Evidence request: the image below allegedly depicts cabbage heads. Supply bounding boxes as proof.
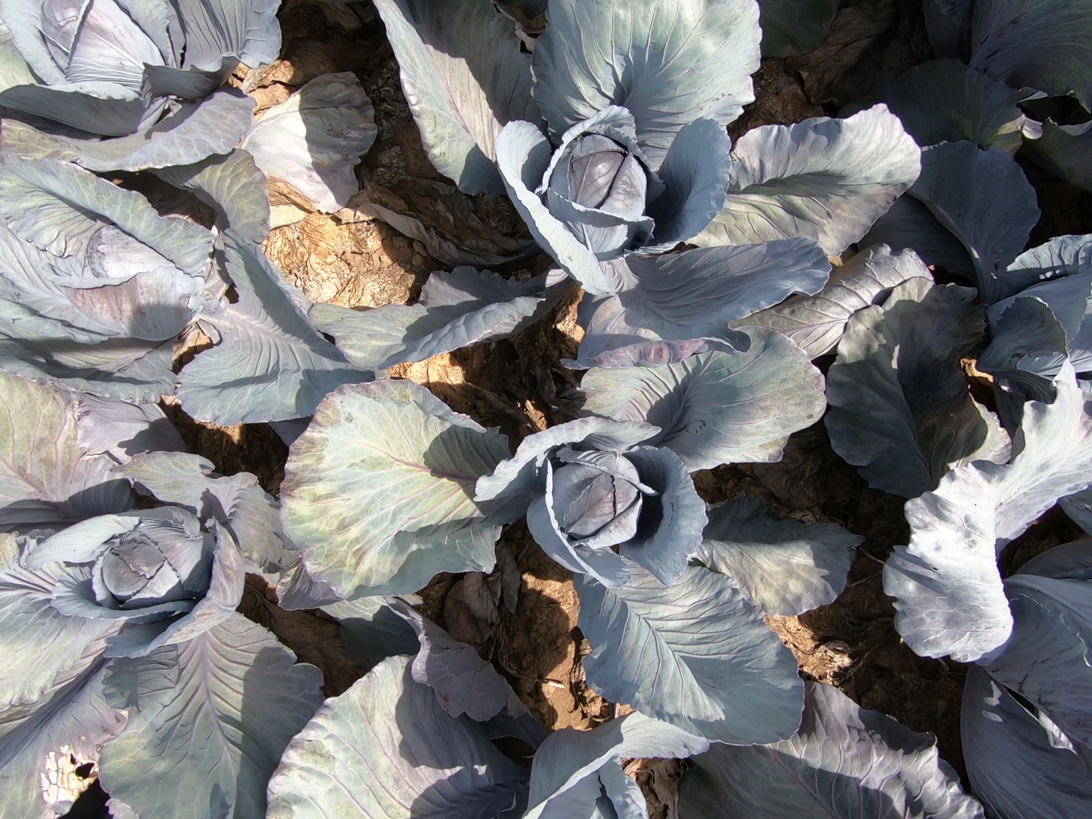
[100,540,185,606]
[547,132,648,254]
[549,454,643,544]
[84,219,179,296]
[40,2,162,84]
